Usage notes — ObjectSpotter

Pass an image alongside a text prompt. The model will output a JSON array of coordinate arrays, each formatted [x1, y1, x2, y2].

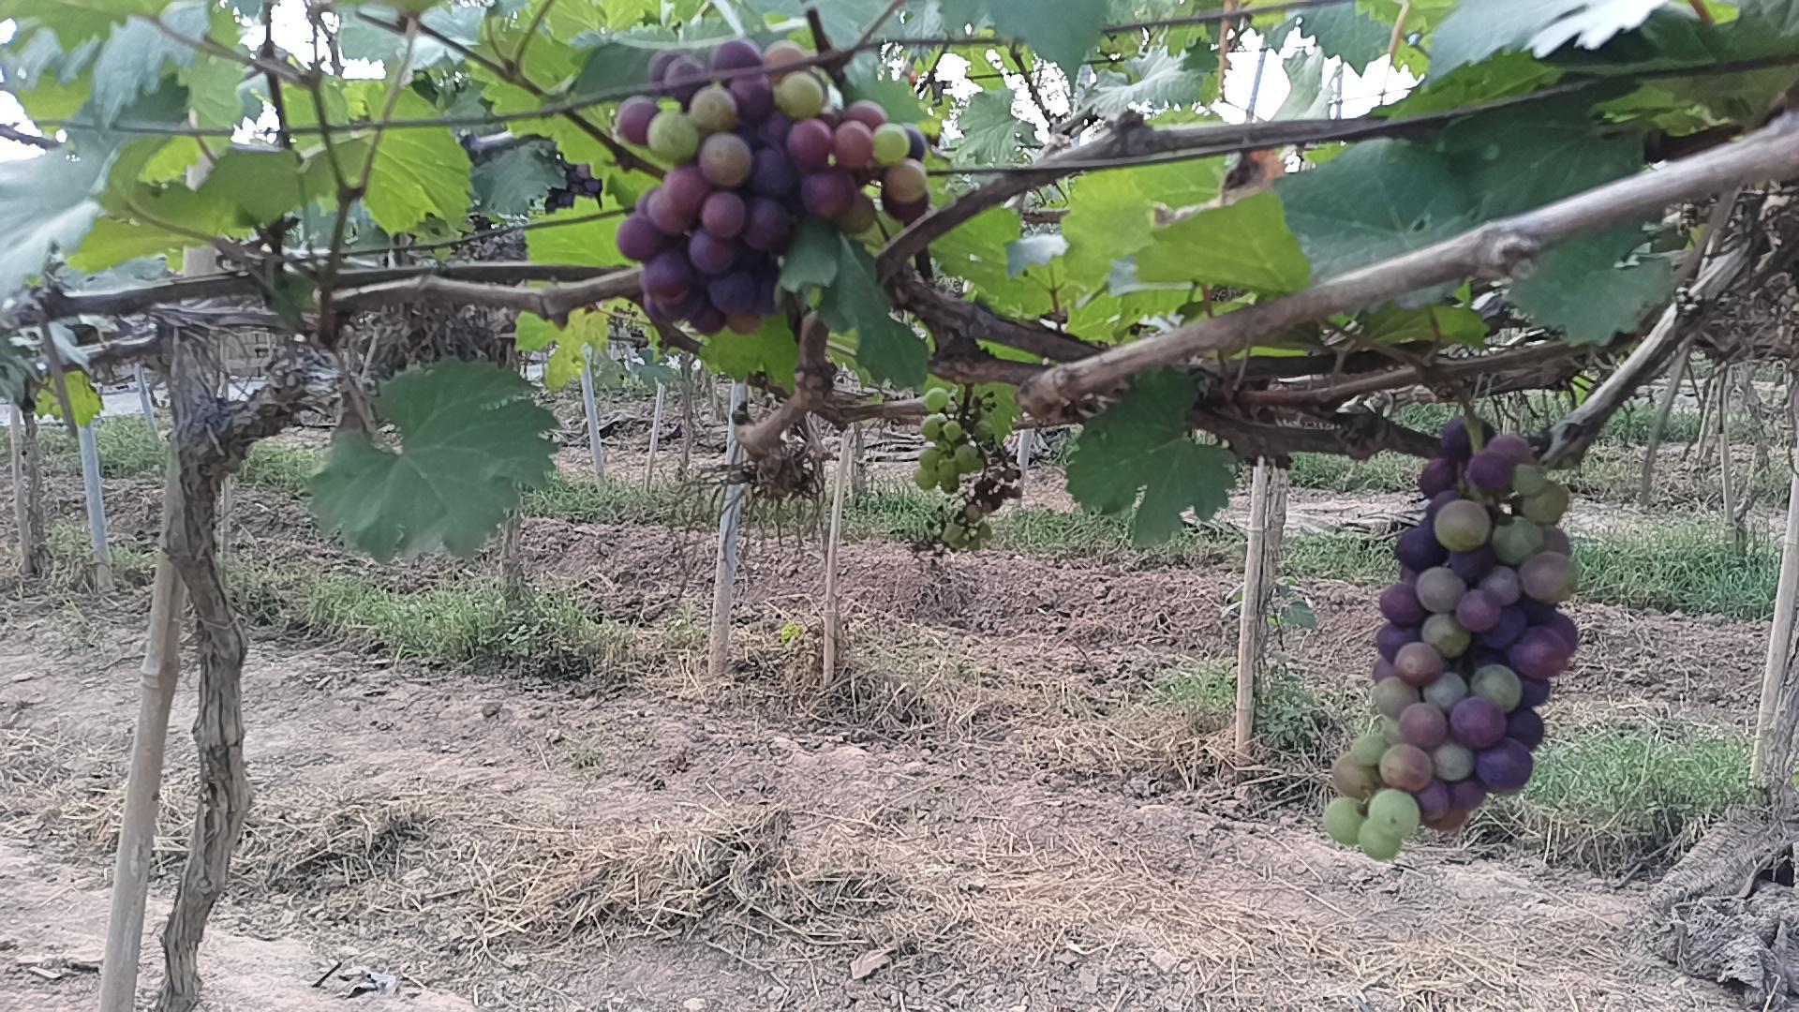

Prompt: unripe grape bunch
[[914, 388, 1023, 550]]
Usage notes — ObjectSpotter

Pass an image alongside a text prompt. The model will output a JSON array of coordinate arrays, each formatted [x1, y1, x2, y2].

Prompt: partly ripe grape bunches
[[1323, 417, 1578, 860], [614, 40, 929, 336]]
